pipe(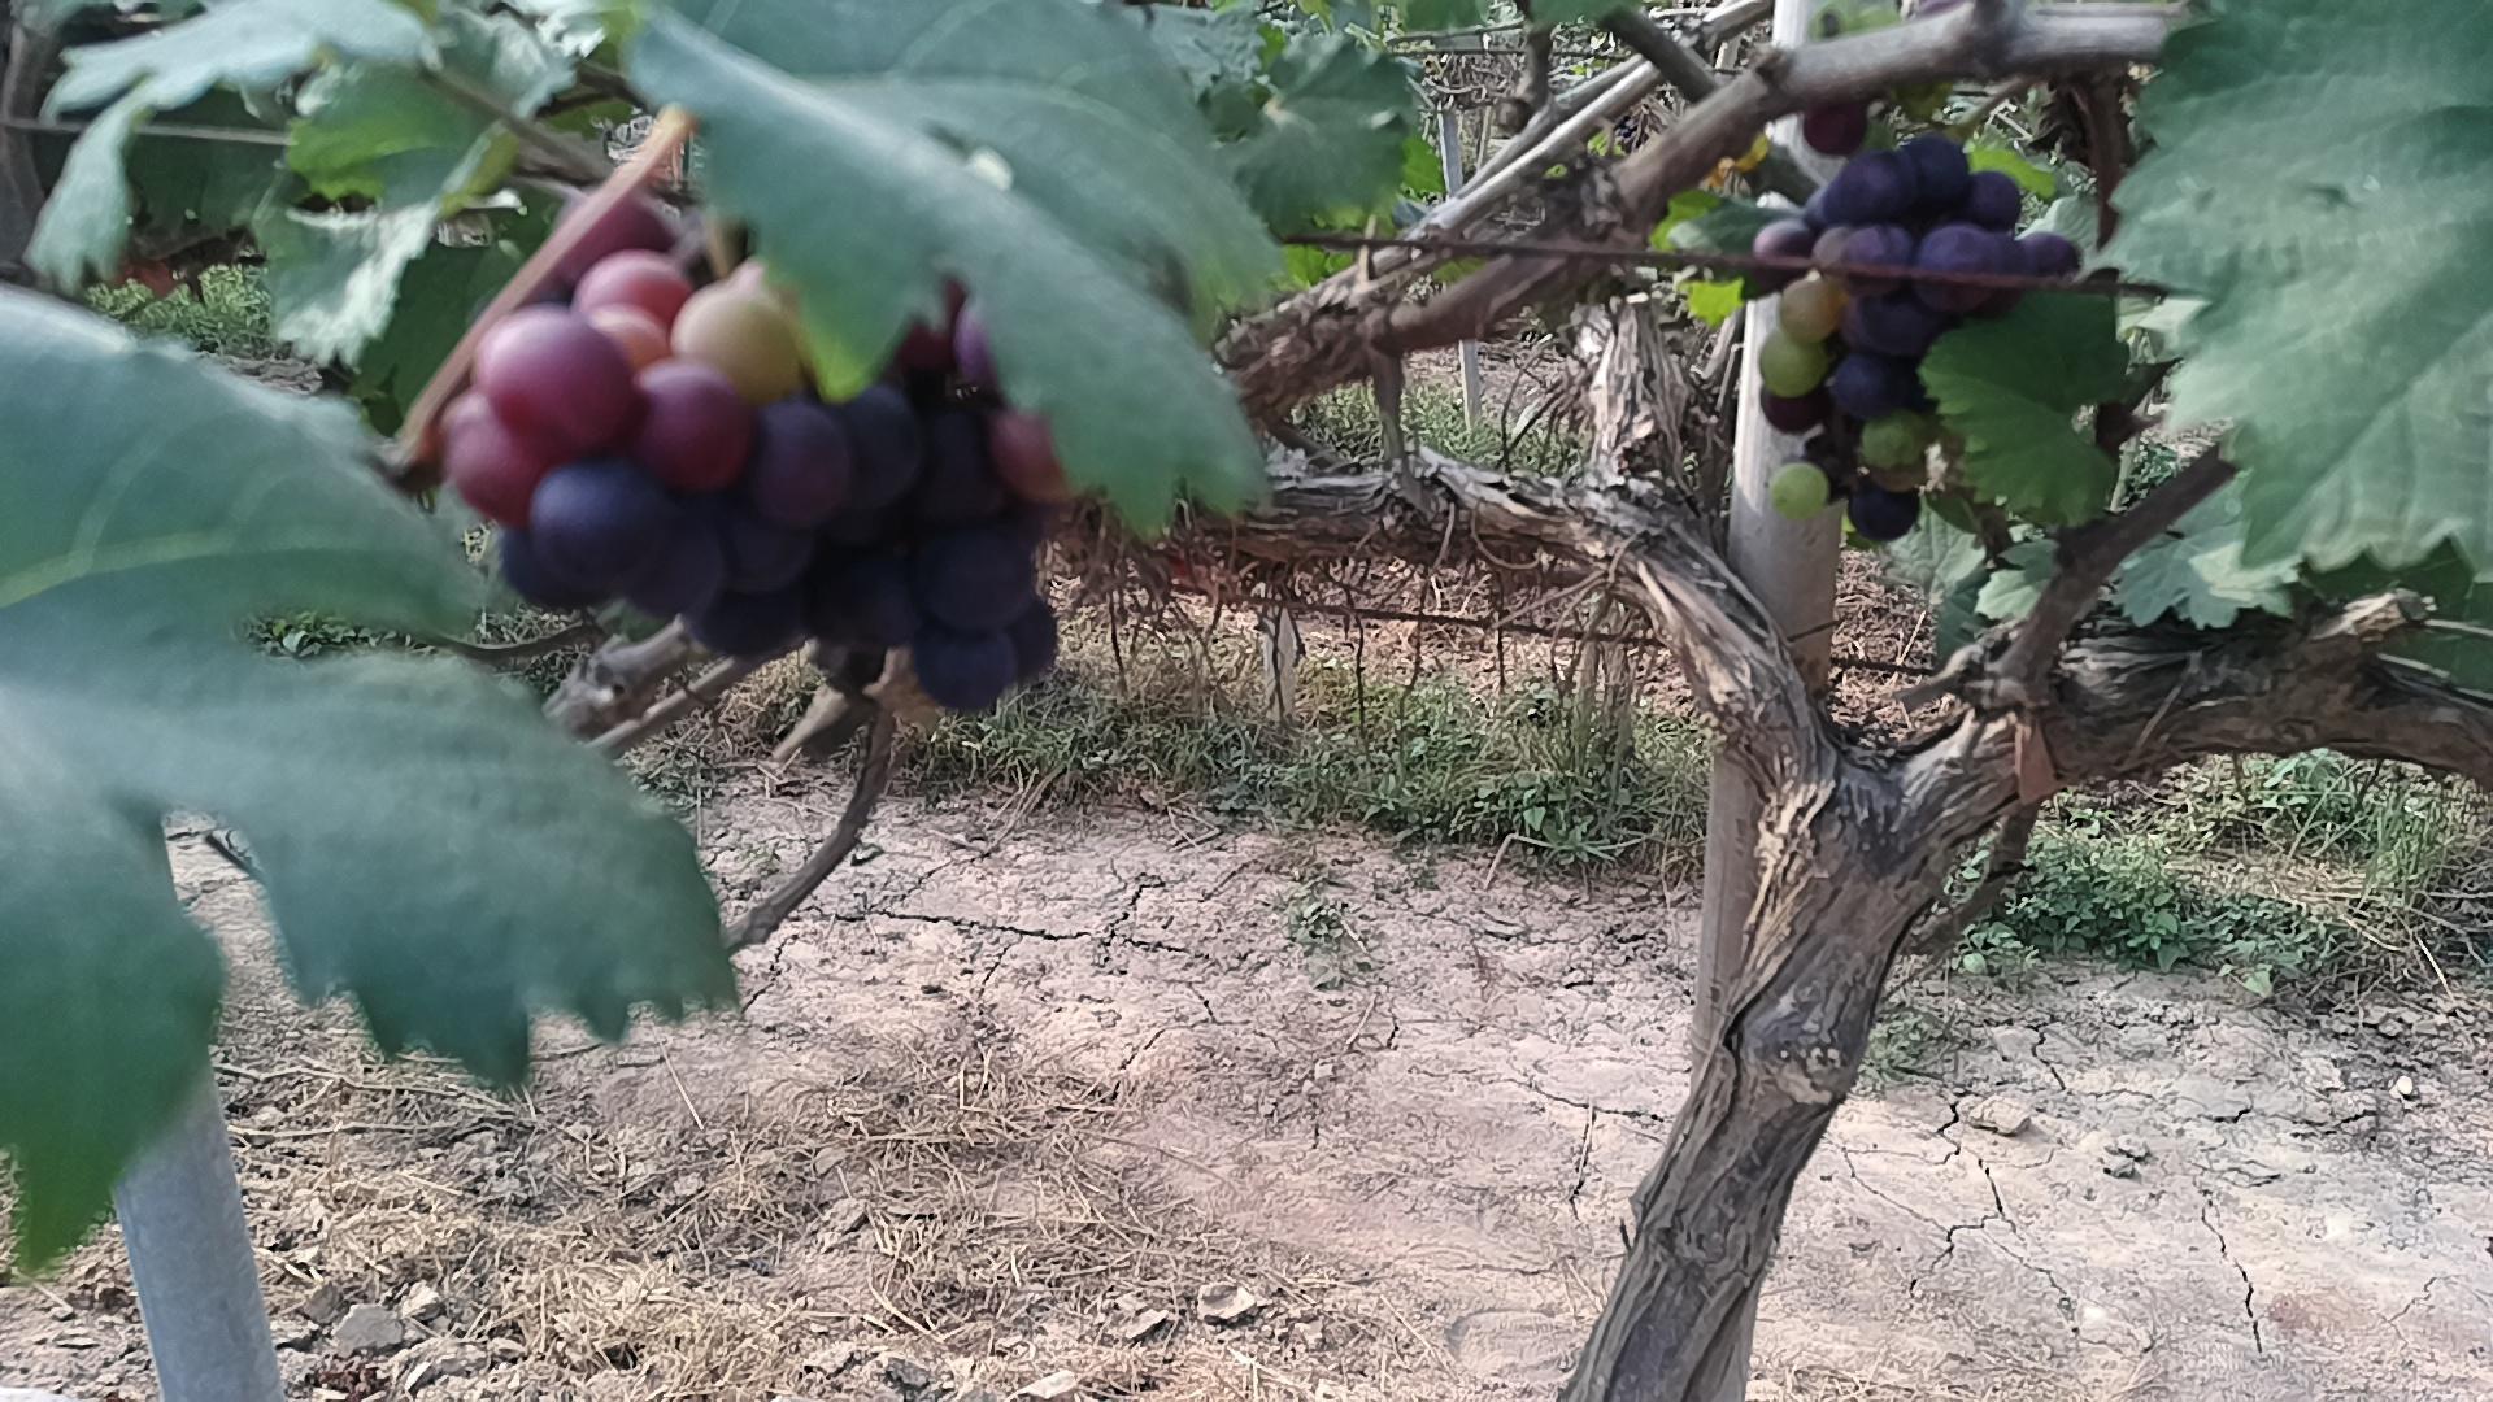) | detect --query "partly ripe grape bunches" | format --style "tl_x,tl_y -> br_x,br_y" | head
422,179 -> 1069,710
1748,93 -> 2077,545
